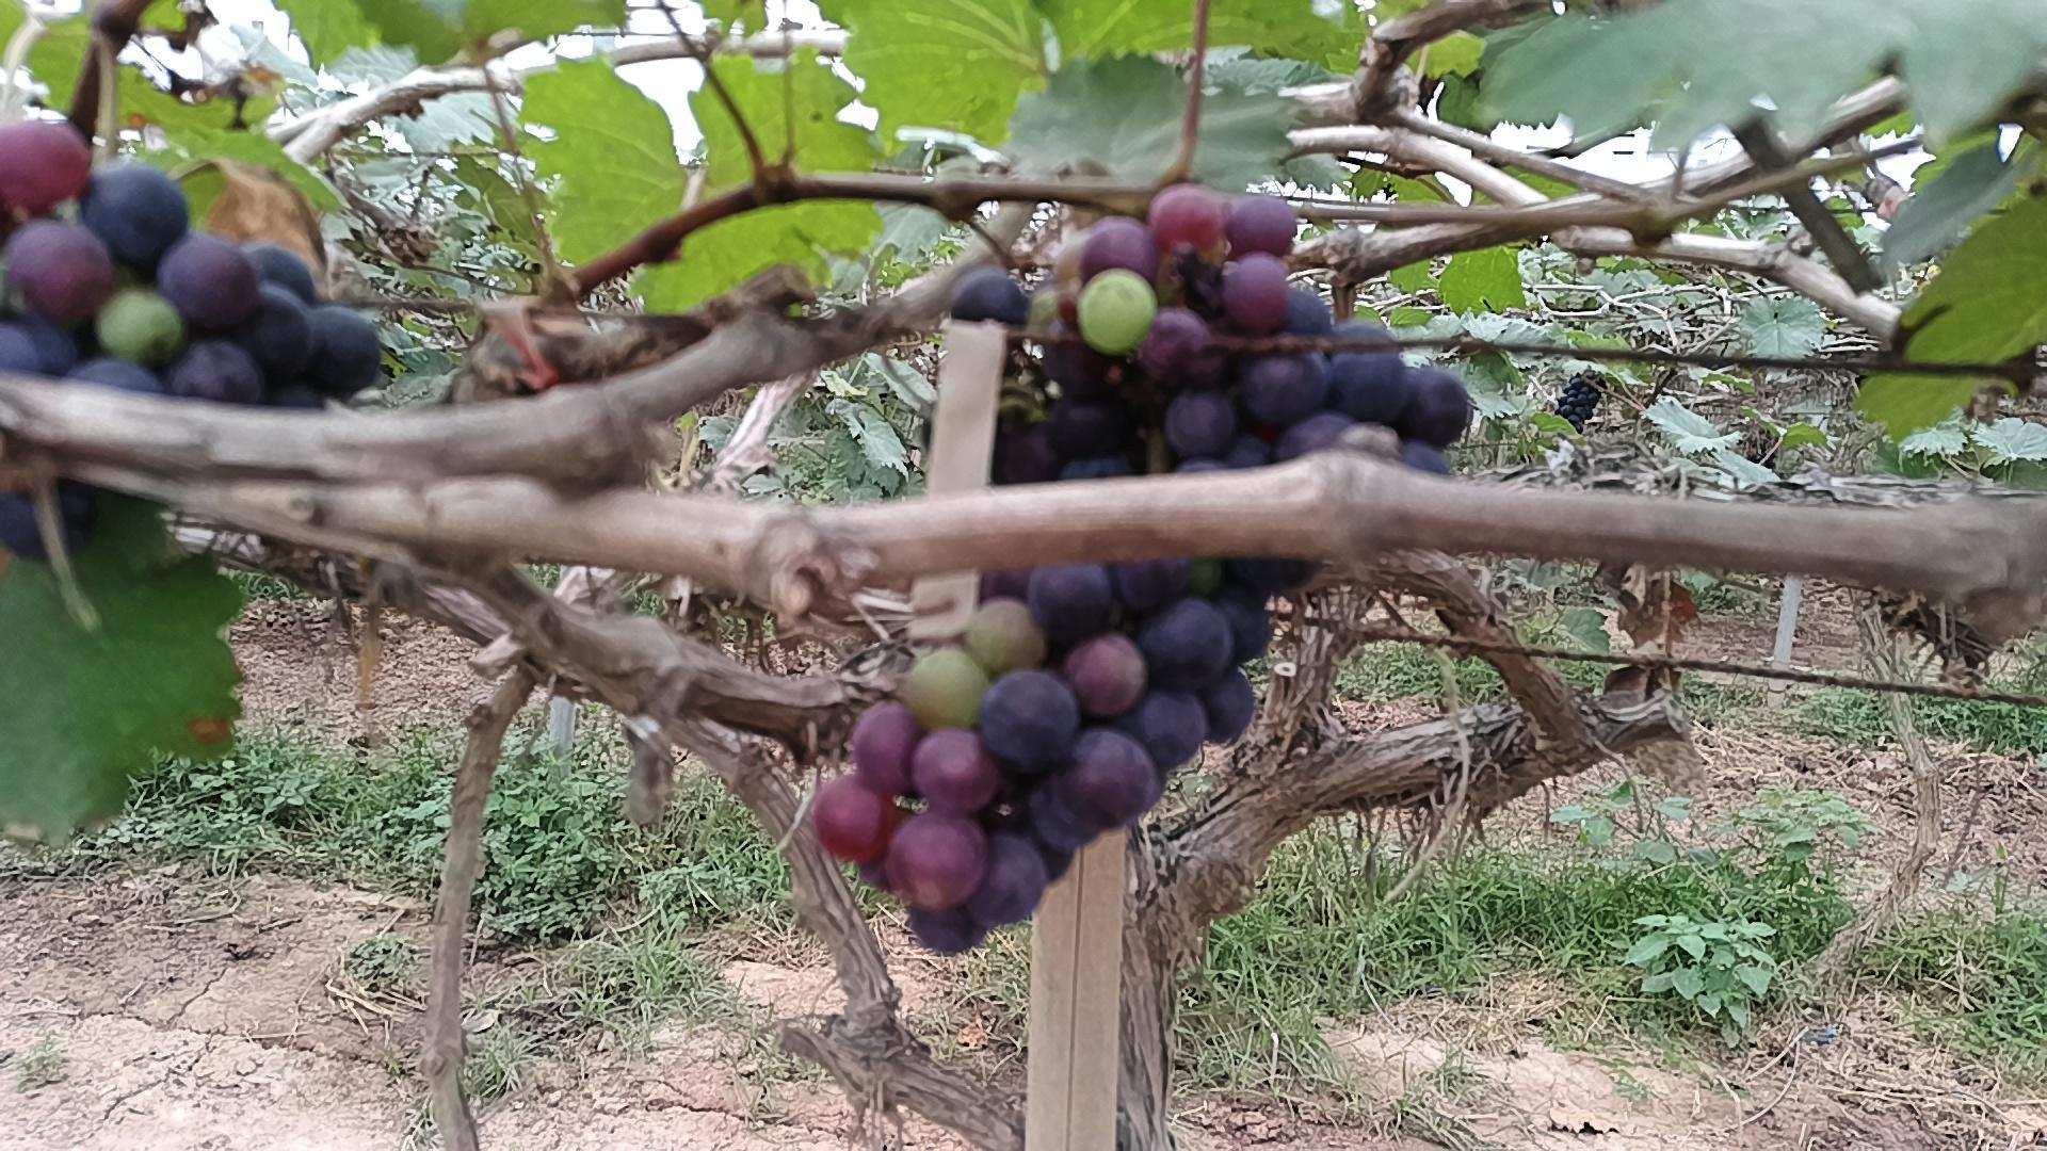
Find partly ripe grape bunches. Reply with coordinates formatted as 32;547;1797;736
812;185;1471;952
0;121;380;561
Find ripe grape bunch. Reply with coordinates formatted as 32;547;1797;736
1552;371;1606;433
